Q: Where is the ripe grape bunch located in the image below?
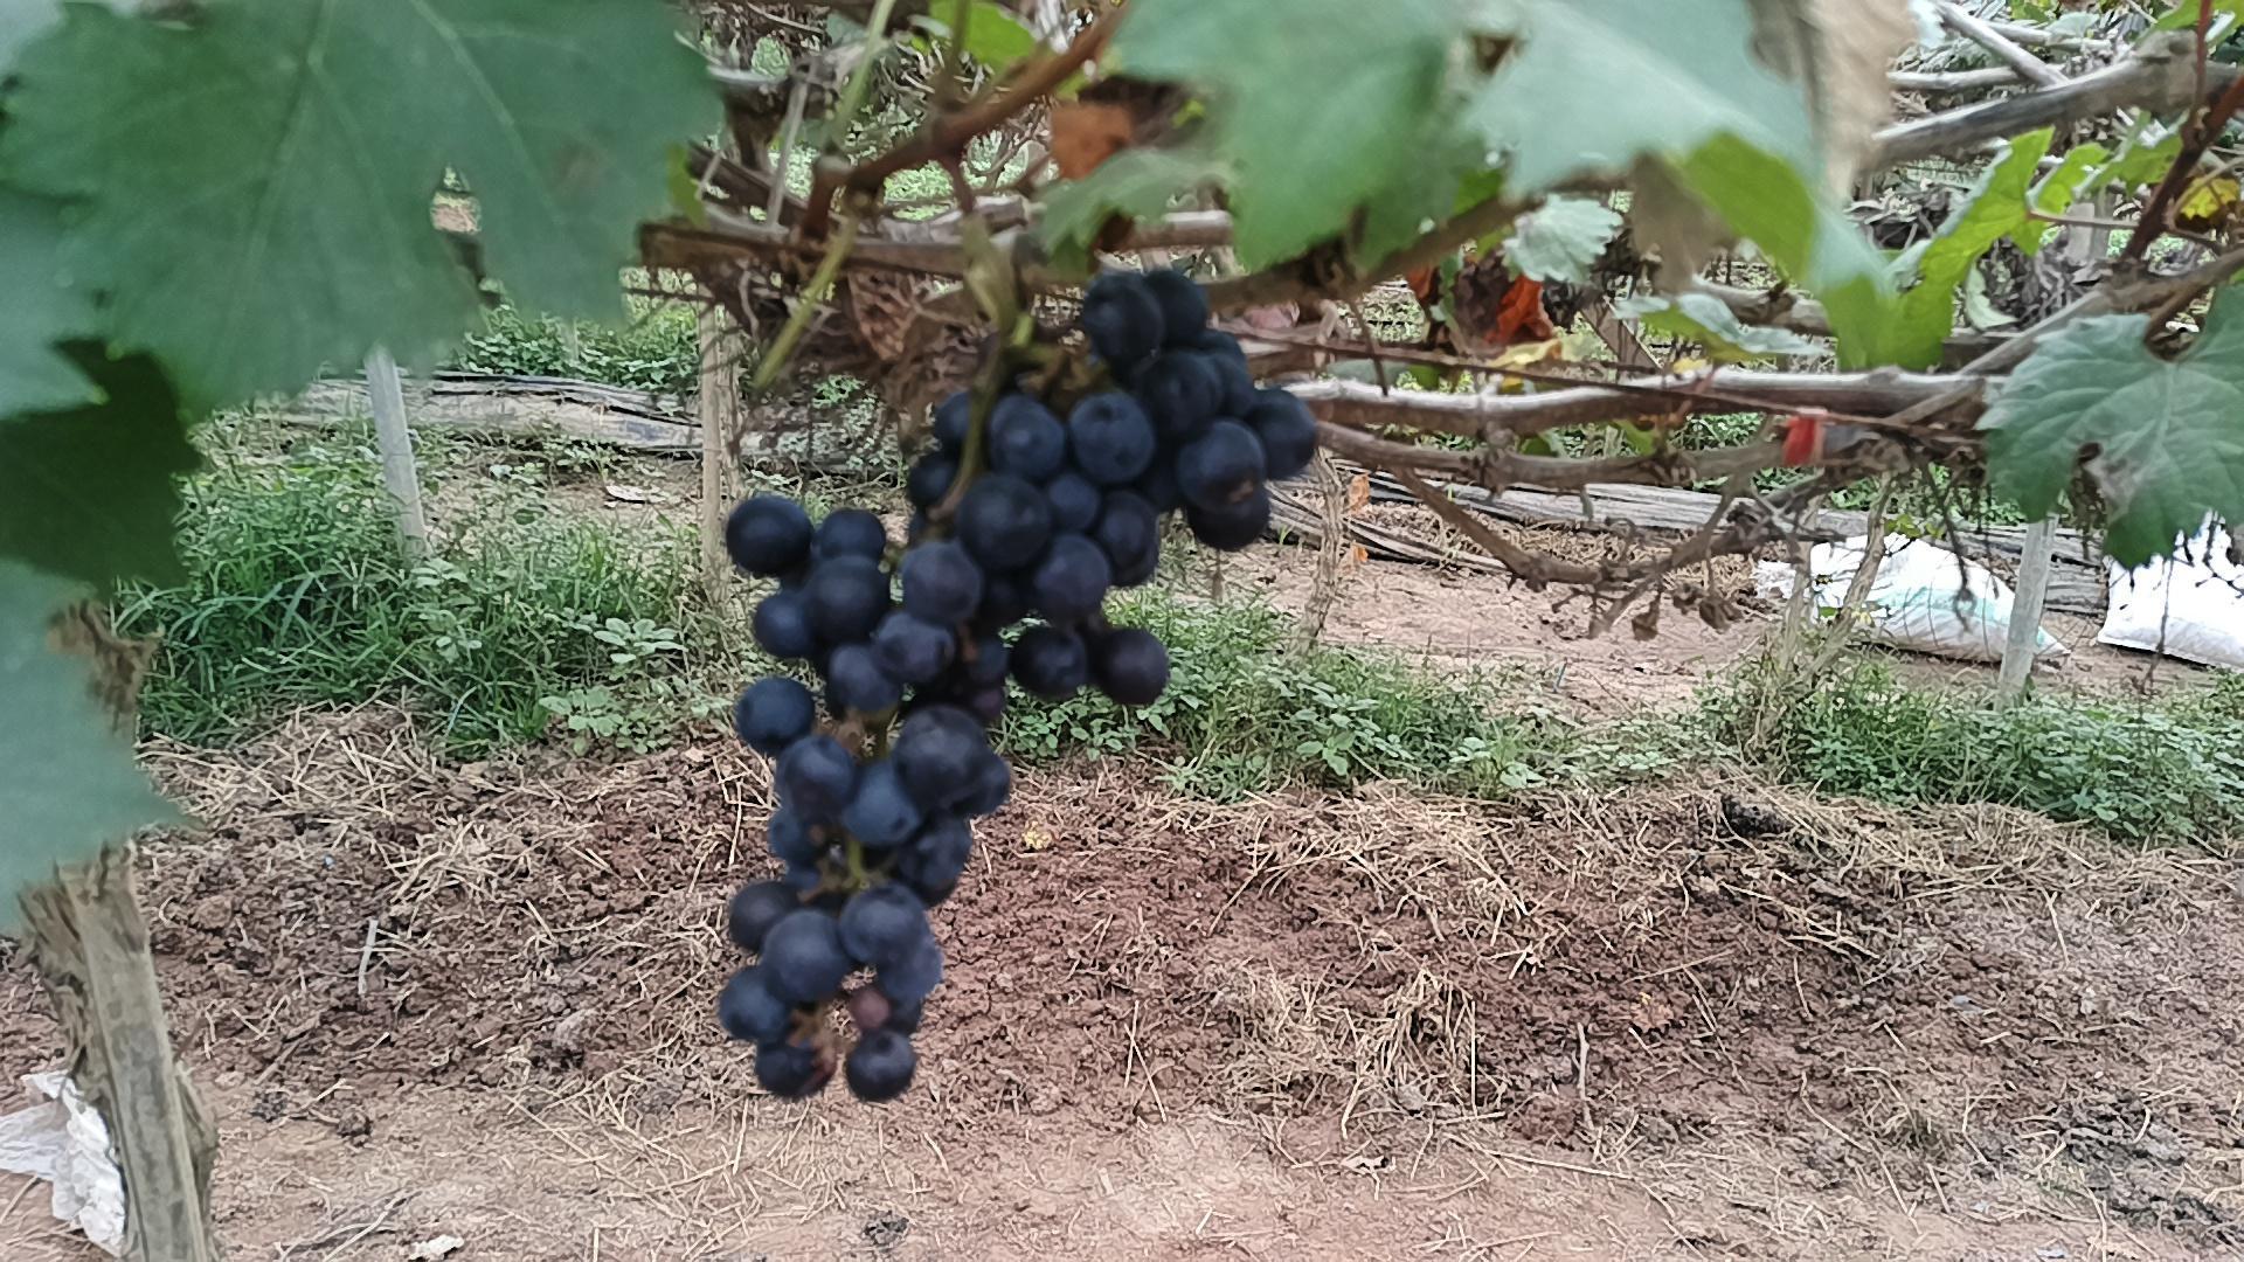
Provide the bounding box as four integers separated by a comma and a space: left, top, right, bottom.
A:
720, 270, 1315, 1101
